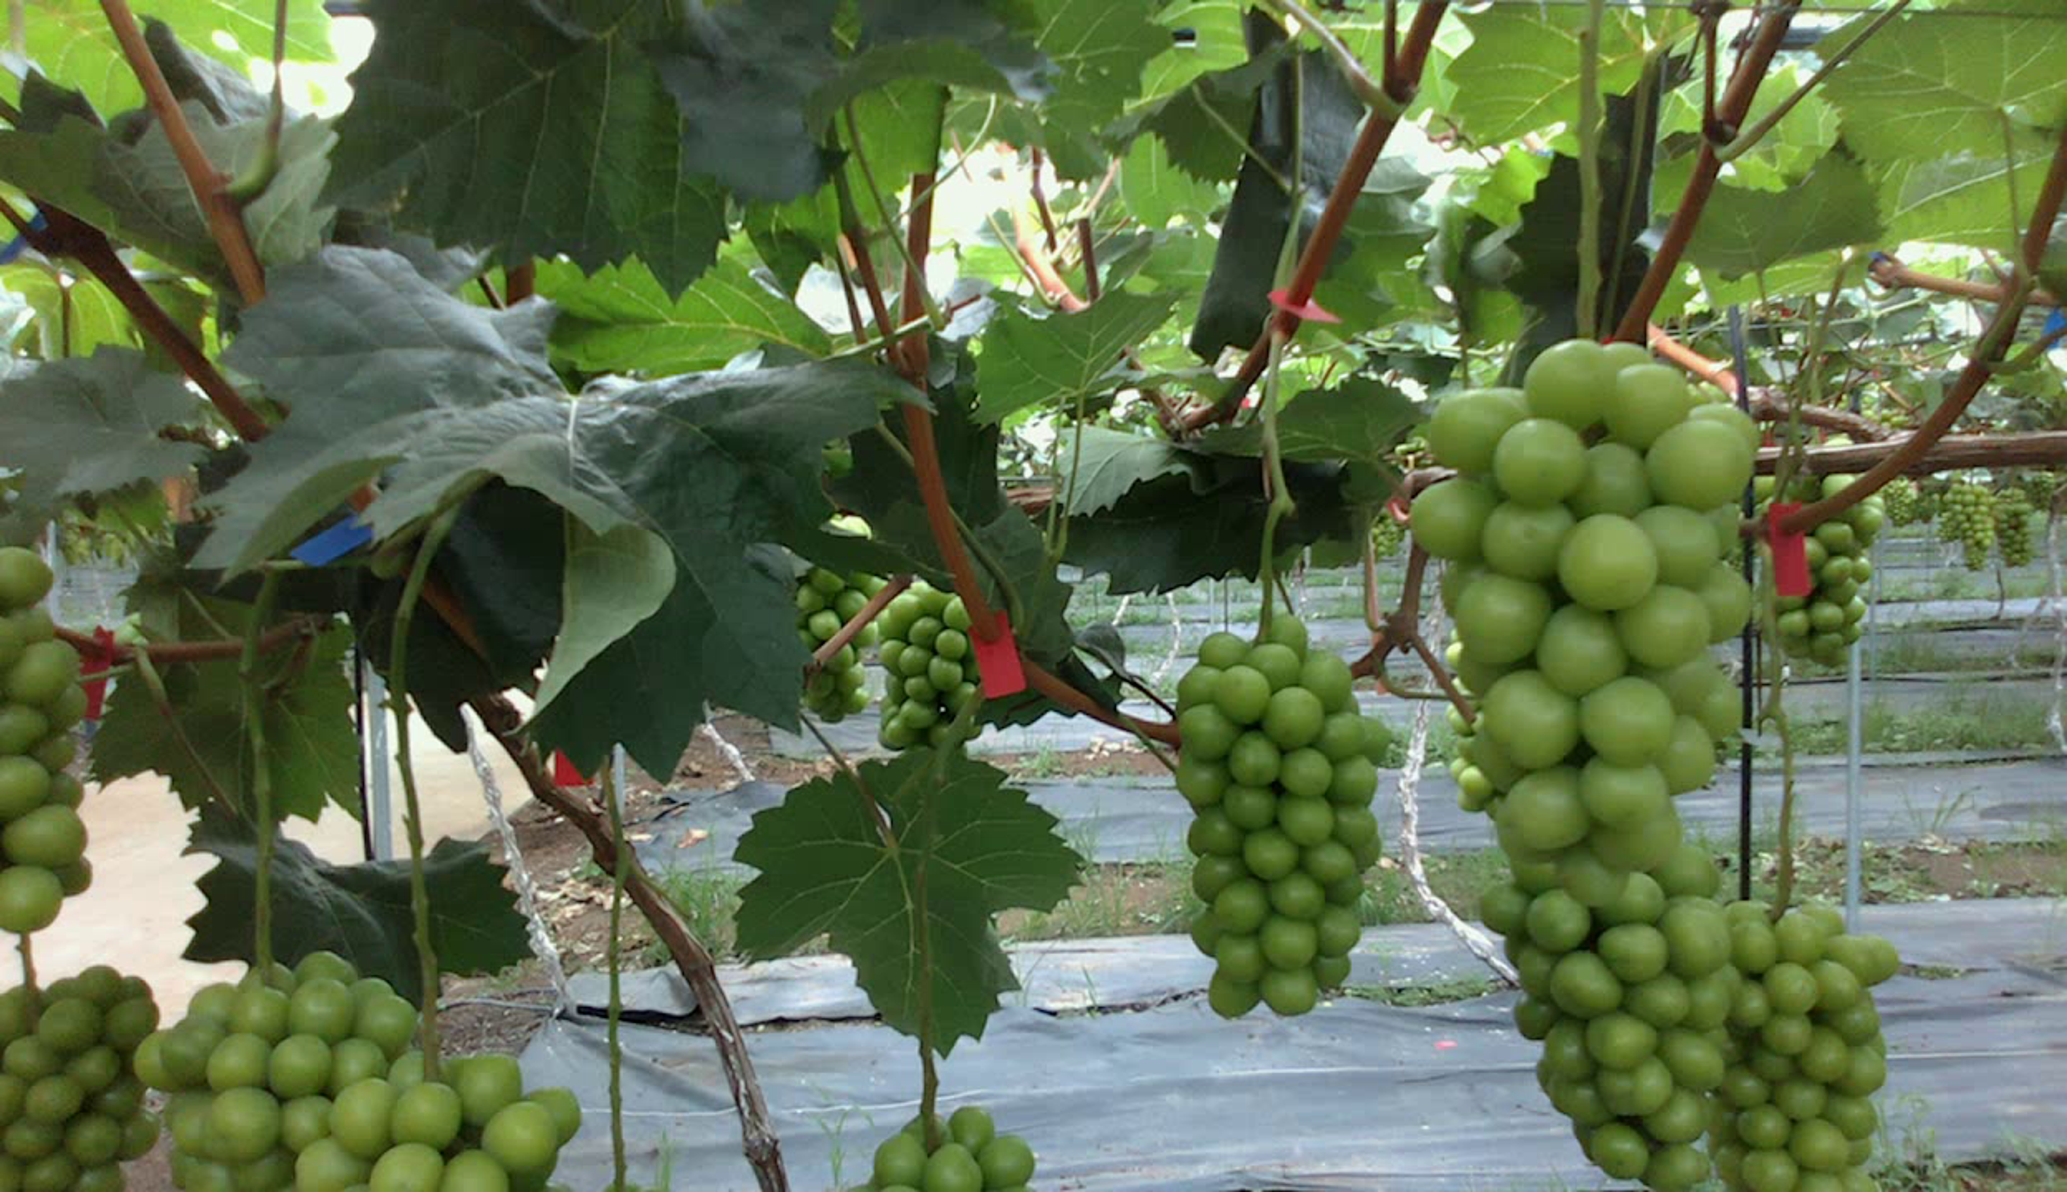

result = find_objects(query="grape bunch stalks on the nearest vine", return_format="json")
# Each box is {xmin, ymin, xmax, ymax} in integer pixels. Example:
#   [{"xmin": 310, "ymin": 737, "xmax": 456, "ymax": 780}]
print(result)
[
  {"xmin": 15, "ymin": 935, "xmax": 40, "ymax": 1033},
  {"xmin": 1252, "ymin": 339, "xmax": 1287, "ymax": 644},
  {"xmin": 240, "ymin": 571, "xmax": 280, "ymax": 985},
  {"xmin": 1757, "ymin": 541, "xmax": 1794, "ymax": 924},
  {"xmin": 913, "ymin": 685, "xmax": 985, "ymax": 1157},
  {"xmin": 388, "ymin": 503, "xmax": 462, "ymax": 1081},
  {"xmin": 1572, "ymin": 0, "xmax": 1602, "ymax": 339}
]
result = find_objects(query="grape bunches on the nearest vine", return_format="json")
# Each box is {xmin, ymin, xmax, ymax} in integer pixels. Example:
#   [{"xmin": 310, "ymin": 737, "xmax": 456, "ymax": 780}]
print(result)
[
  {"xmin": 0, "ymin": 546, "xmax": 94, "ymax": 935},
  {"xmin": 1704, "ymin": 897, "xmax": 1903, "ymax": 1190},
  {"xmin": 0, "ymin": 965, "xmax": 161, "ymax": 1189},
  {"xmin": 295, "ymin": 1051, "xmax": 580, "ymax": 1190},
  {"xmin": 132, "ymin": 950, "xmax": 419, "ymax": 1190},
  {"xmin": 1174, "ymin": 613, "xmax": 1393, "ymax": 1018},
  {"xmin": 1408, "ymin": 338, "xmax": 1759, "ymax": 909},
  {"xmin": 1481, "ymin": 843, "xmax": 1744, "ymax": 1189},
  {"xmin": 868, "ymin": 1106, "xmax": 1037, "ymax": 1190}
]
